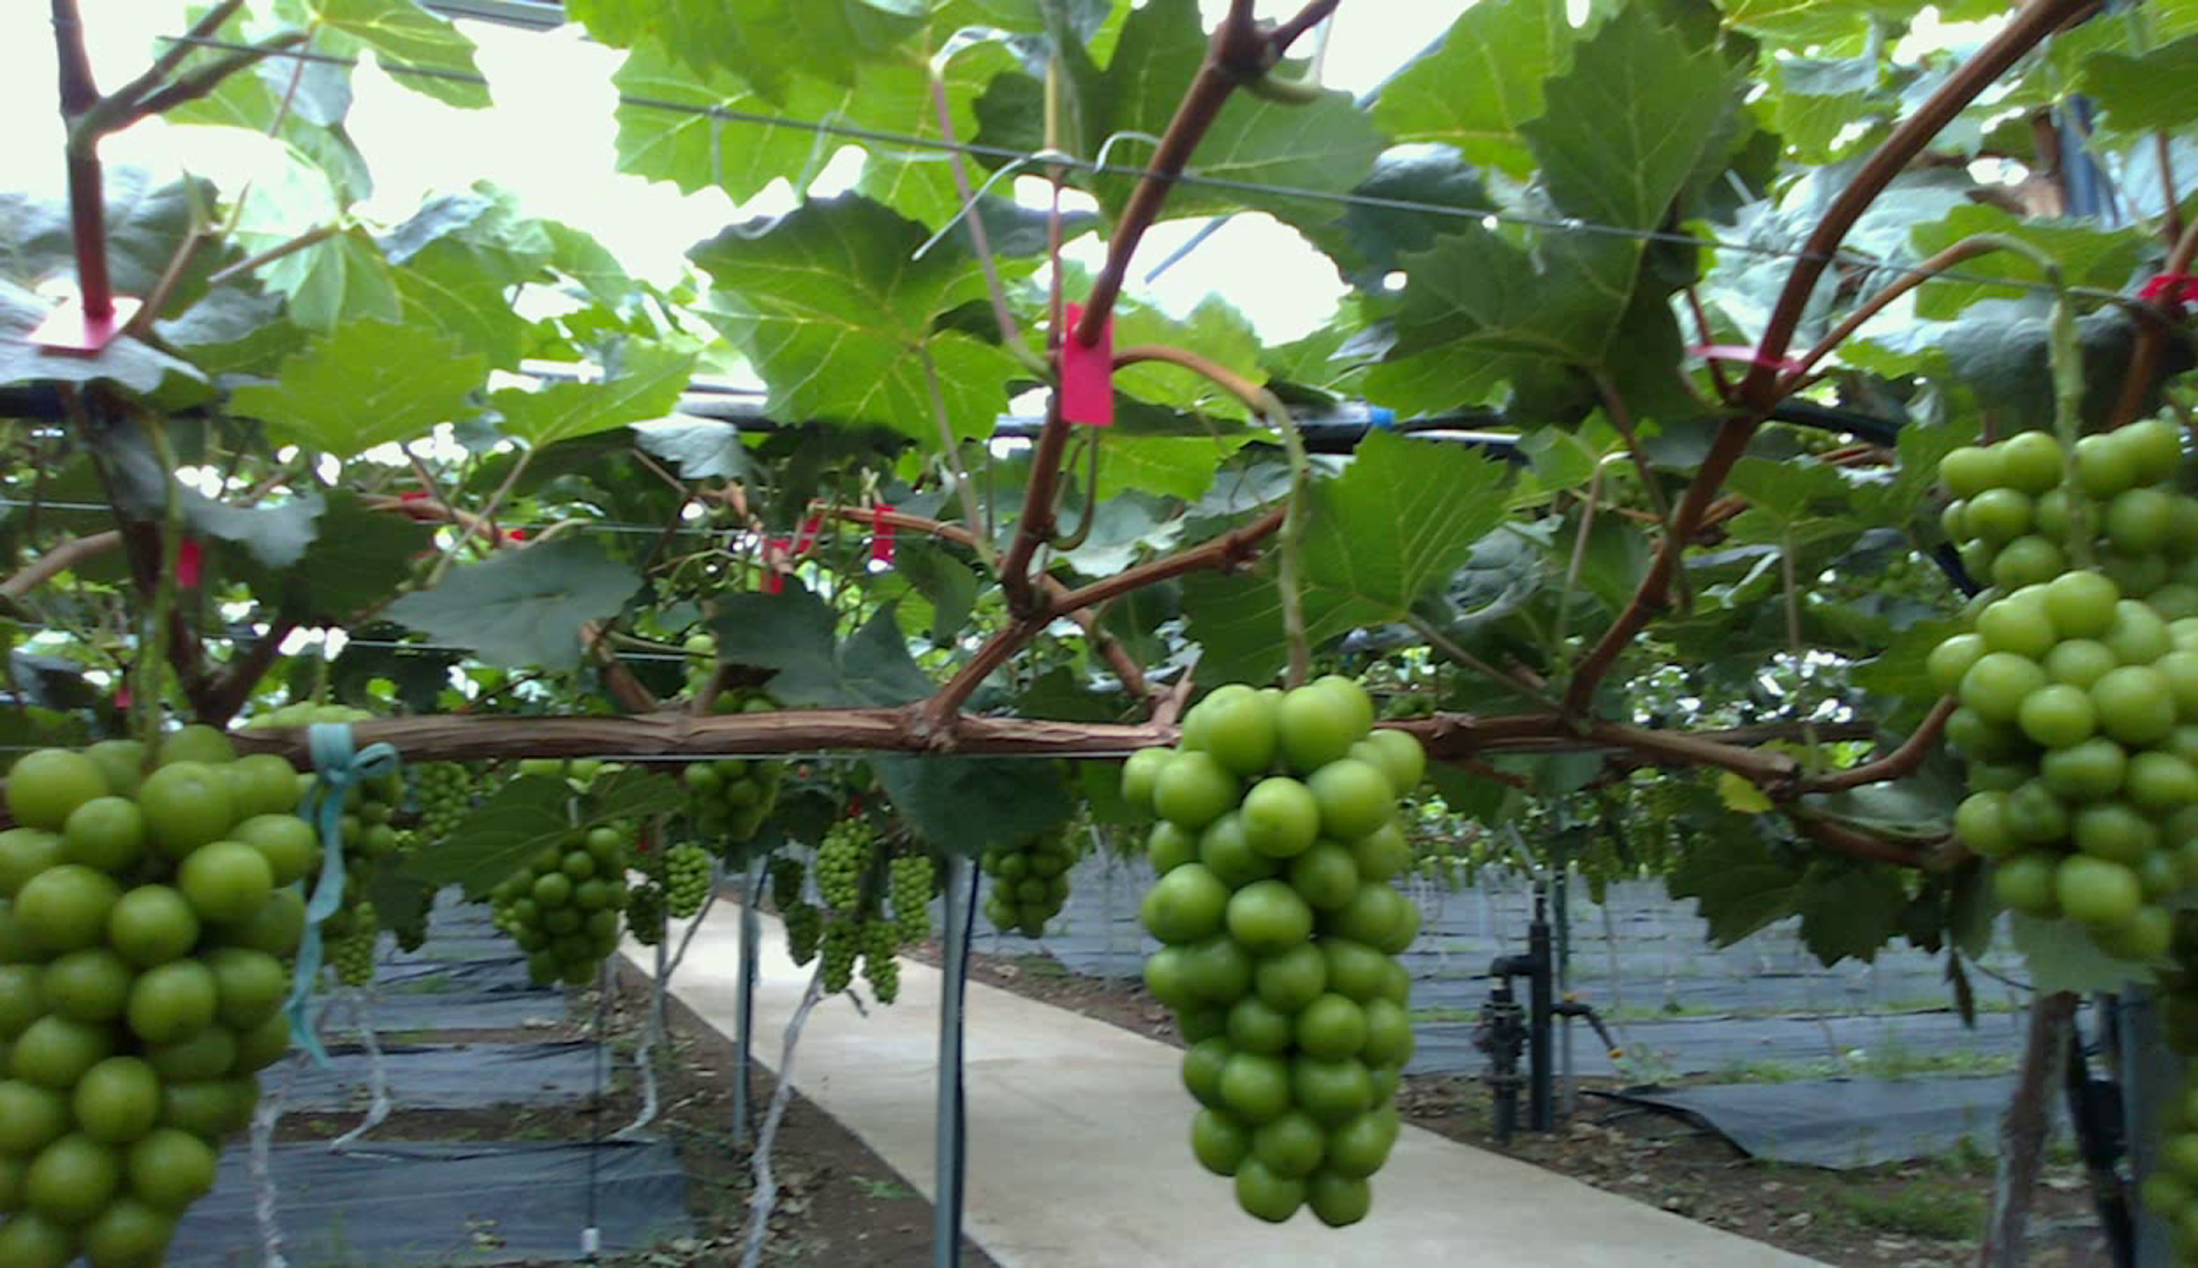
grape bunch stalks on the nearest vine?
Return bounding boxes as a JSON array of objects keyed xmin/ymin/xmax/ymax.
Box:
[
  {"xmin": 1113, "ymin": 343, "xmax": 1310, "ymax": 687},
  {"xmin": 1927, "ymin": 234, "xmax": 2099, "ymax": 571},
  {"xmin": 127, "ymin": 400, "xmax": 183, "ymax": 778}
]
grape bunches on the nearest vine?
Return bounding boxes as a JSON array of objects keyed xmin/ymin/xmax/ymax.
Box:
[
  {"xmin": 1923, "ymin": 571, "xmax": 2194, "ymax": 962},
  {"xmin": 2, "ymin": 724, "xmax": 319, "ymax": 1266},
  {"xmin": 1118, "ymin": 673, "xmax": 1423, "ymax": 1227}
]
